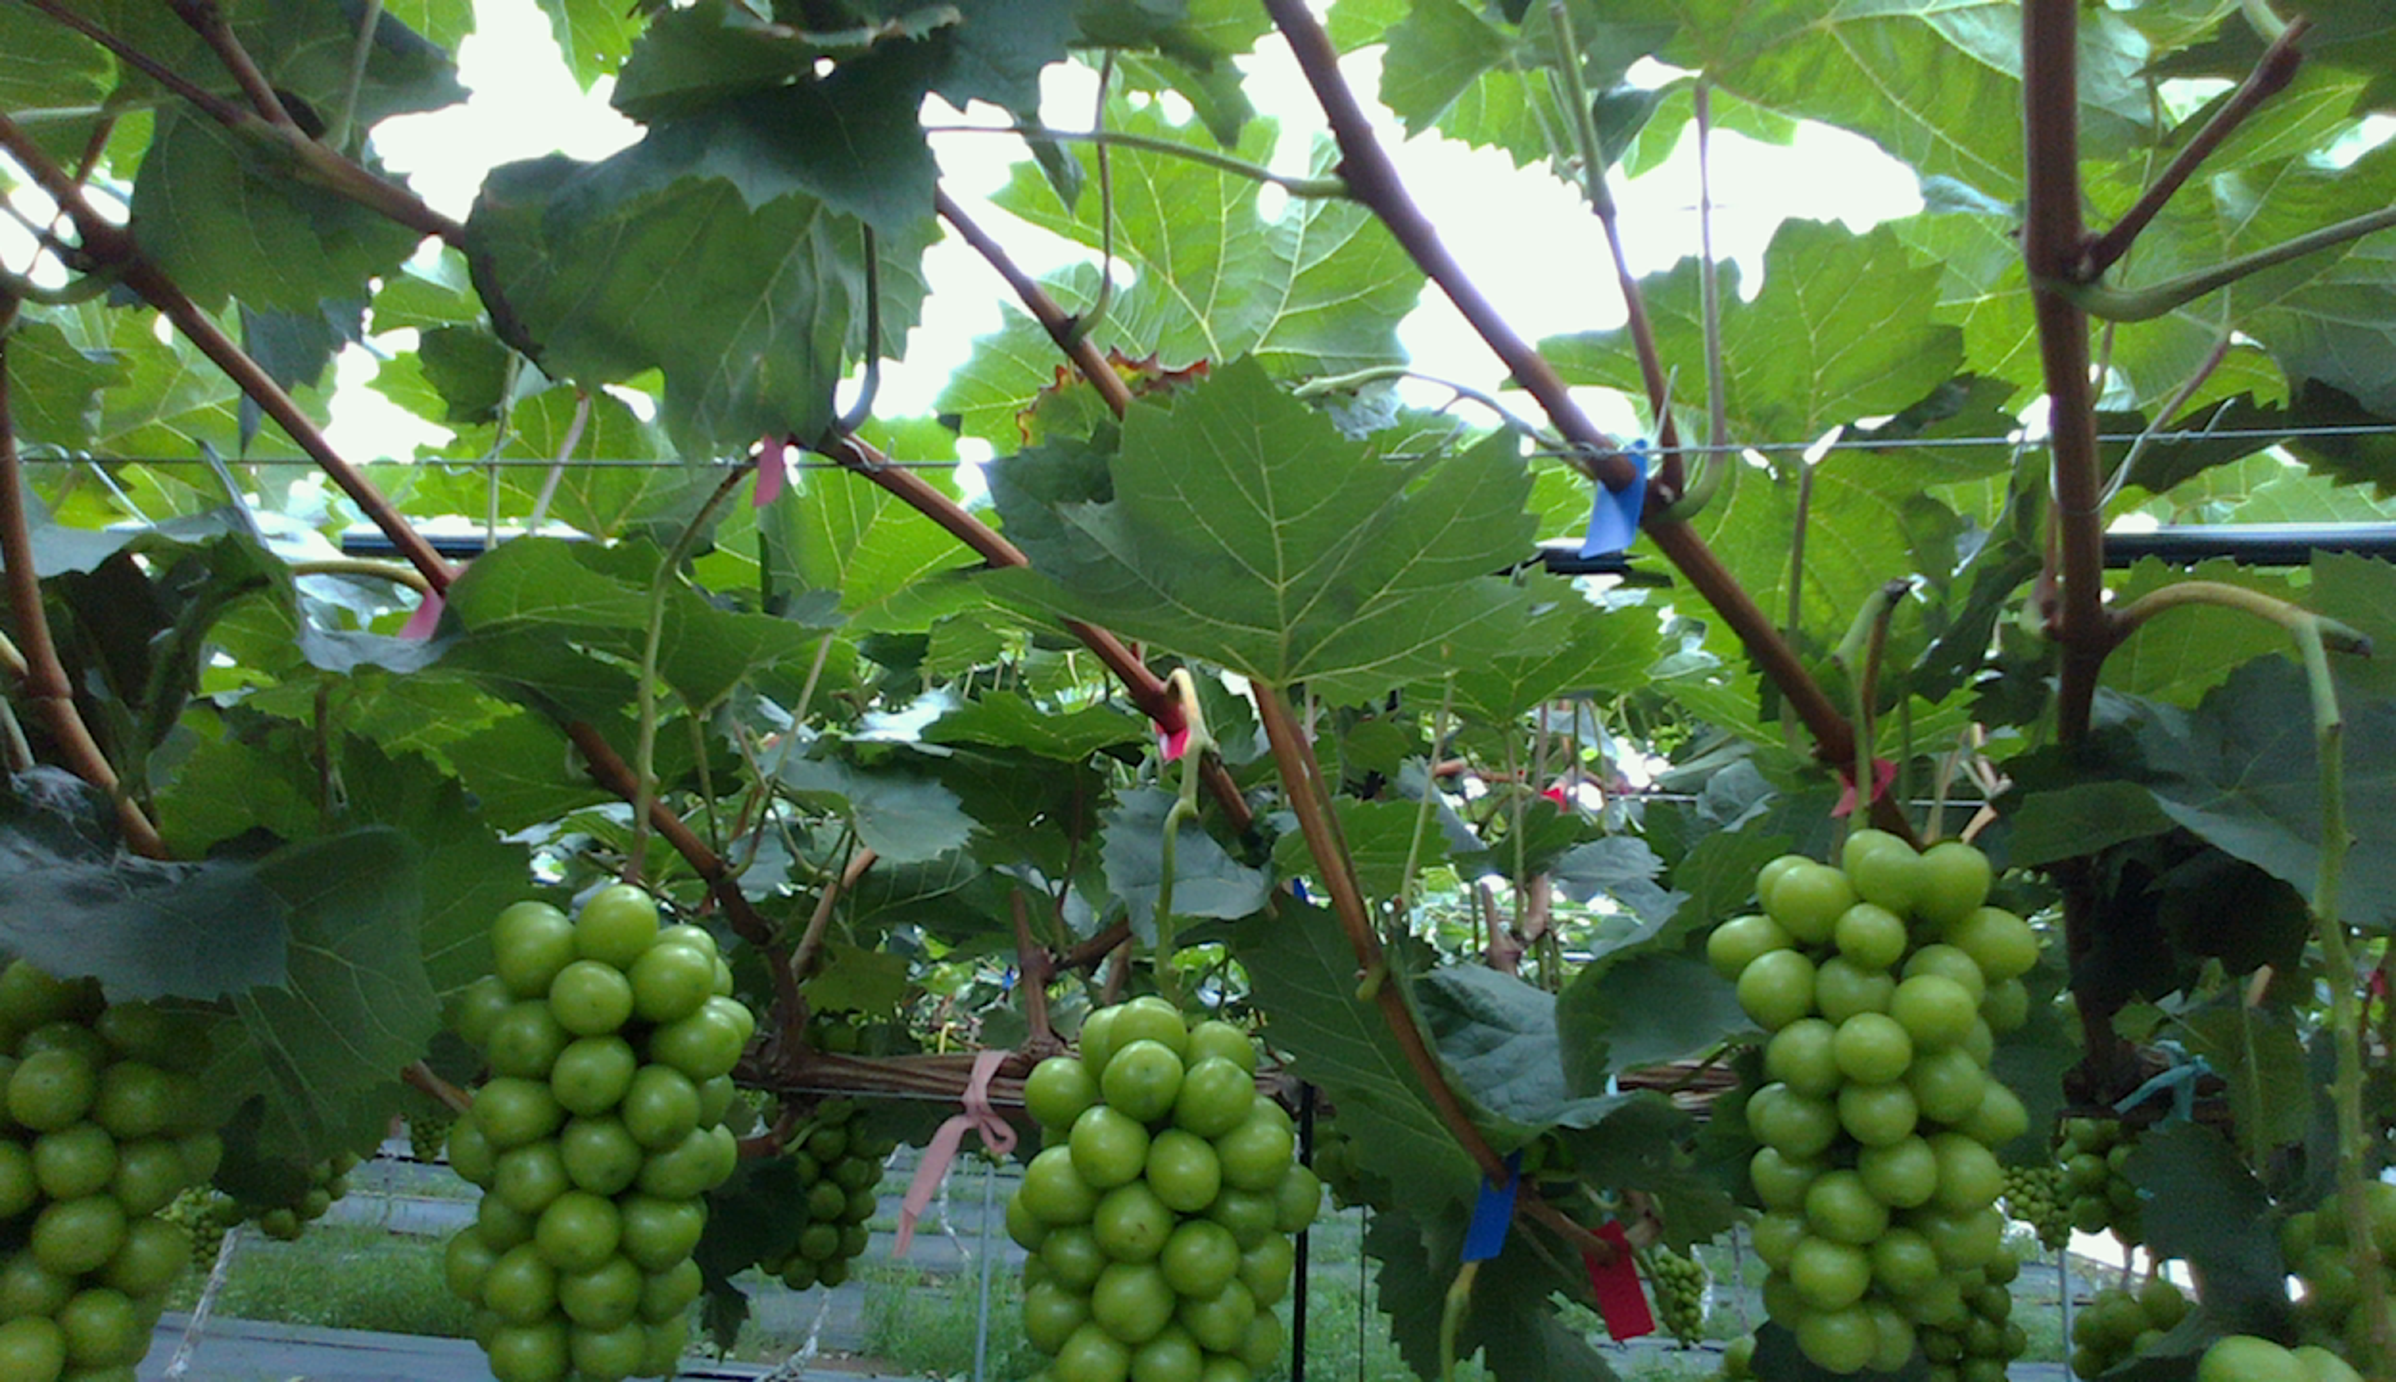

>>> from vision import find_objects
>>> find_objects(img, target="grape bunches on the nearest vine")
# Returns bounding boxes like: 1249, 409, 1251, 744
2202, 1332, 2383, 1380
1004, 996, 1321, 1380
447, 885, 755, 1380
0, 958, 221, 1380
2275, 1180, 2394, 1367
1709, 829, 2037, 1374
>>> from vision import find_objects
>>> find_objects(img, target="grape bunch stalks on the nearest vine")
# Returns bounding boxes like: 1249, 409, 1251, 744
2120, 582, 2394, 1378
1839, 584, 1895, 837
628, 457, 755, 883
1154, 666, 1206, 1004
